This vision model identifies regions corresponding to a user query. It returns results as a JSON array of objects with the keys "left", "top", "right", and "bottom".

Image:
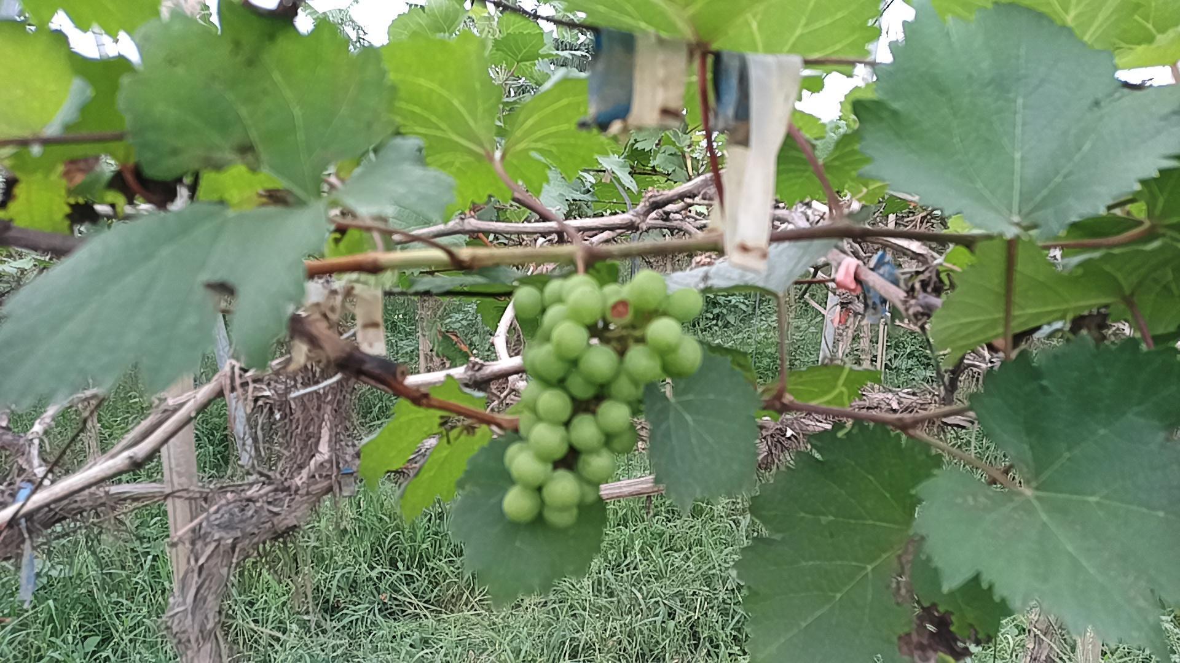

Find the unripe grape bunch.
[{"left": 503, "top": 269, "right": 702, "bottom": 525}]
